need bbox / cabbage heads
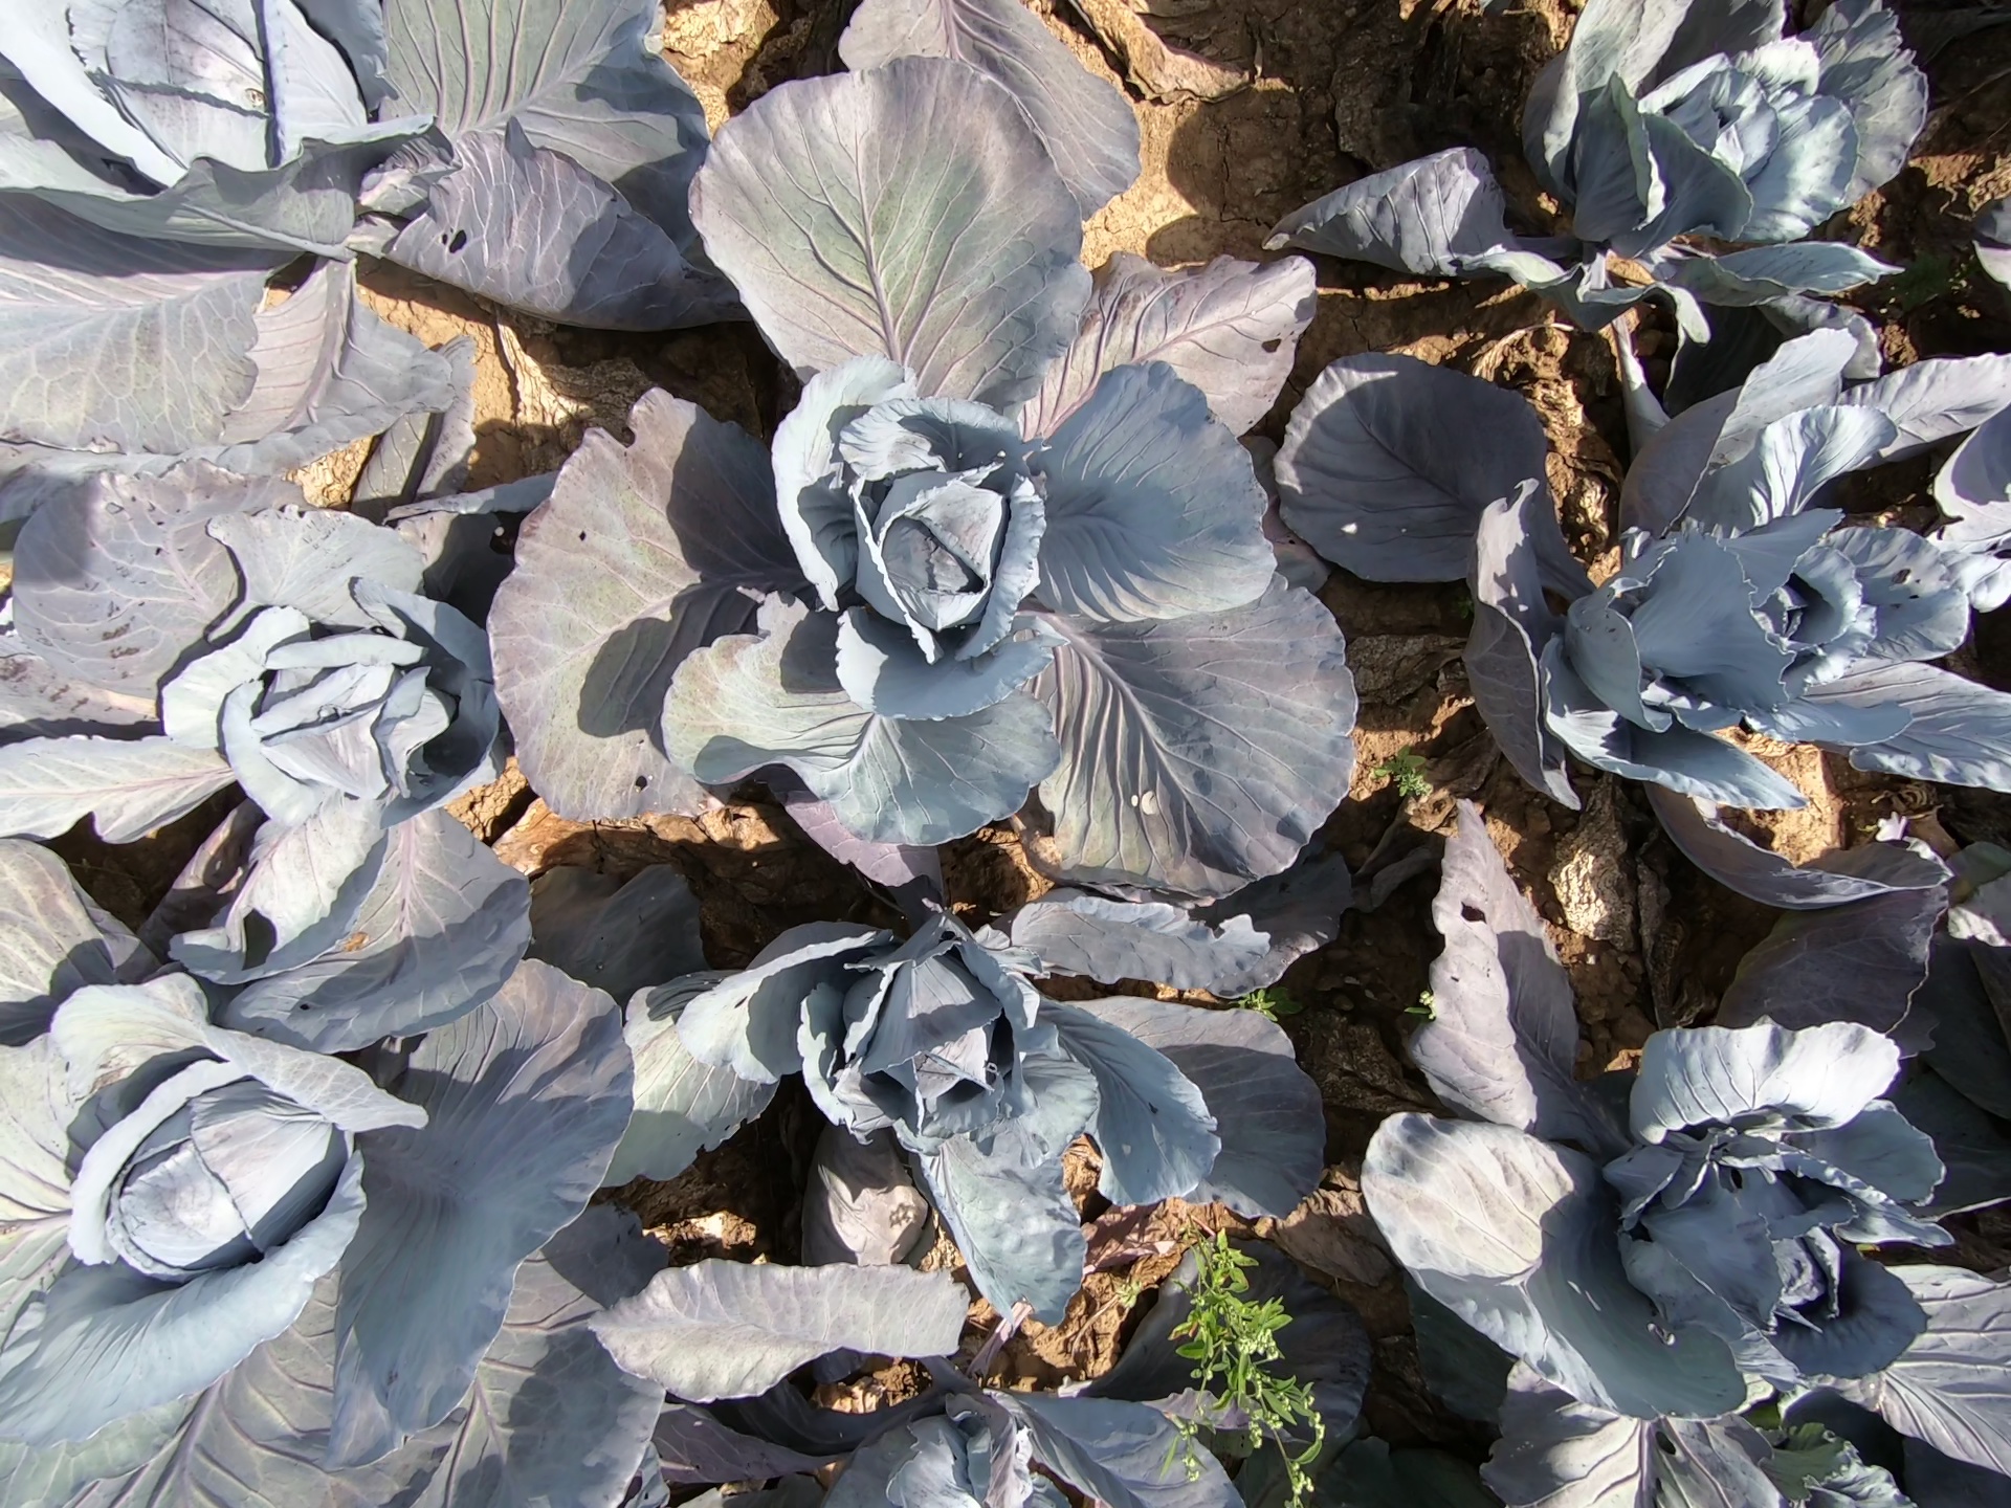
[860,964,993,1101]
[107,1080,344,1281]
[268,642,421,788]
[1644,110,1743,232]
[1710,1212,1831,1305]
[864,476,1001,630]
[1685,568,1804,667]
[842,1417,1039,1505]
[107,3,372,209]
